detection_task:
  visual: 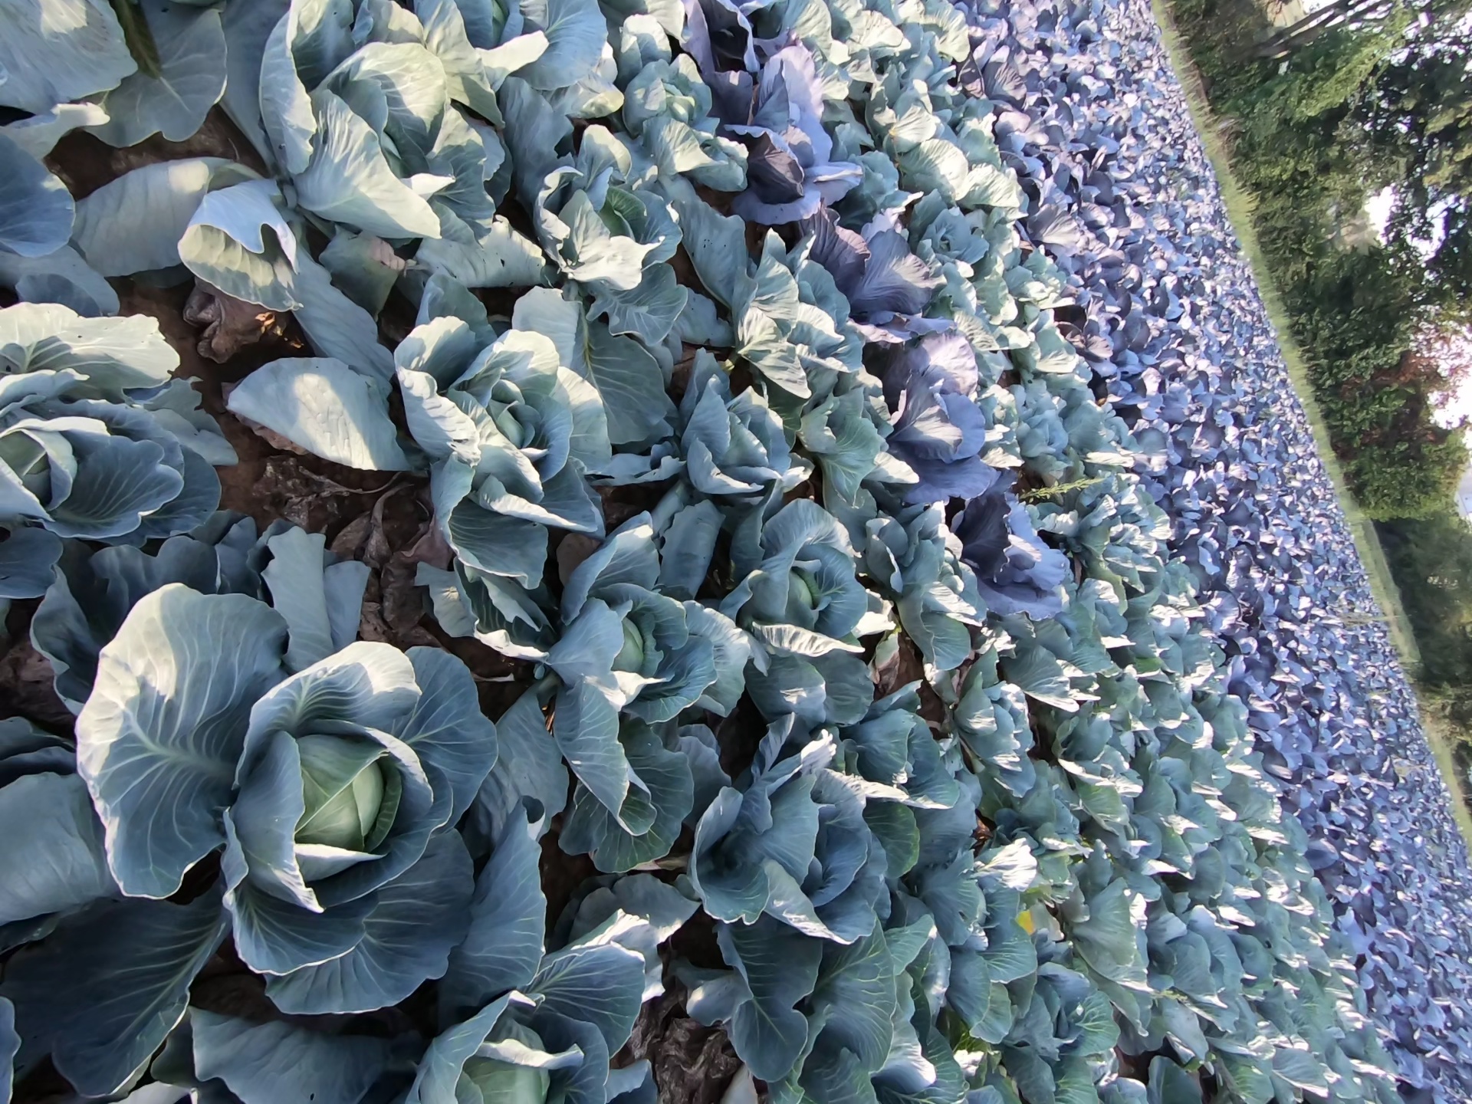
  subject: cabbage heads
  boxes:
[253,736,396,882]
[593,615,647,680]
[4,421,73,514]
[468,400,523,458]
[328,125,404,199]
[432,1020,550,1102]
[754,567,813,623]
